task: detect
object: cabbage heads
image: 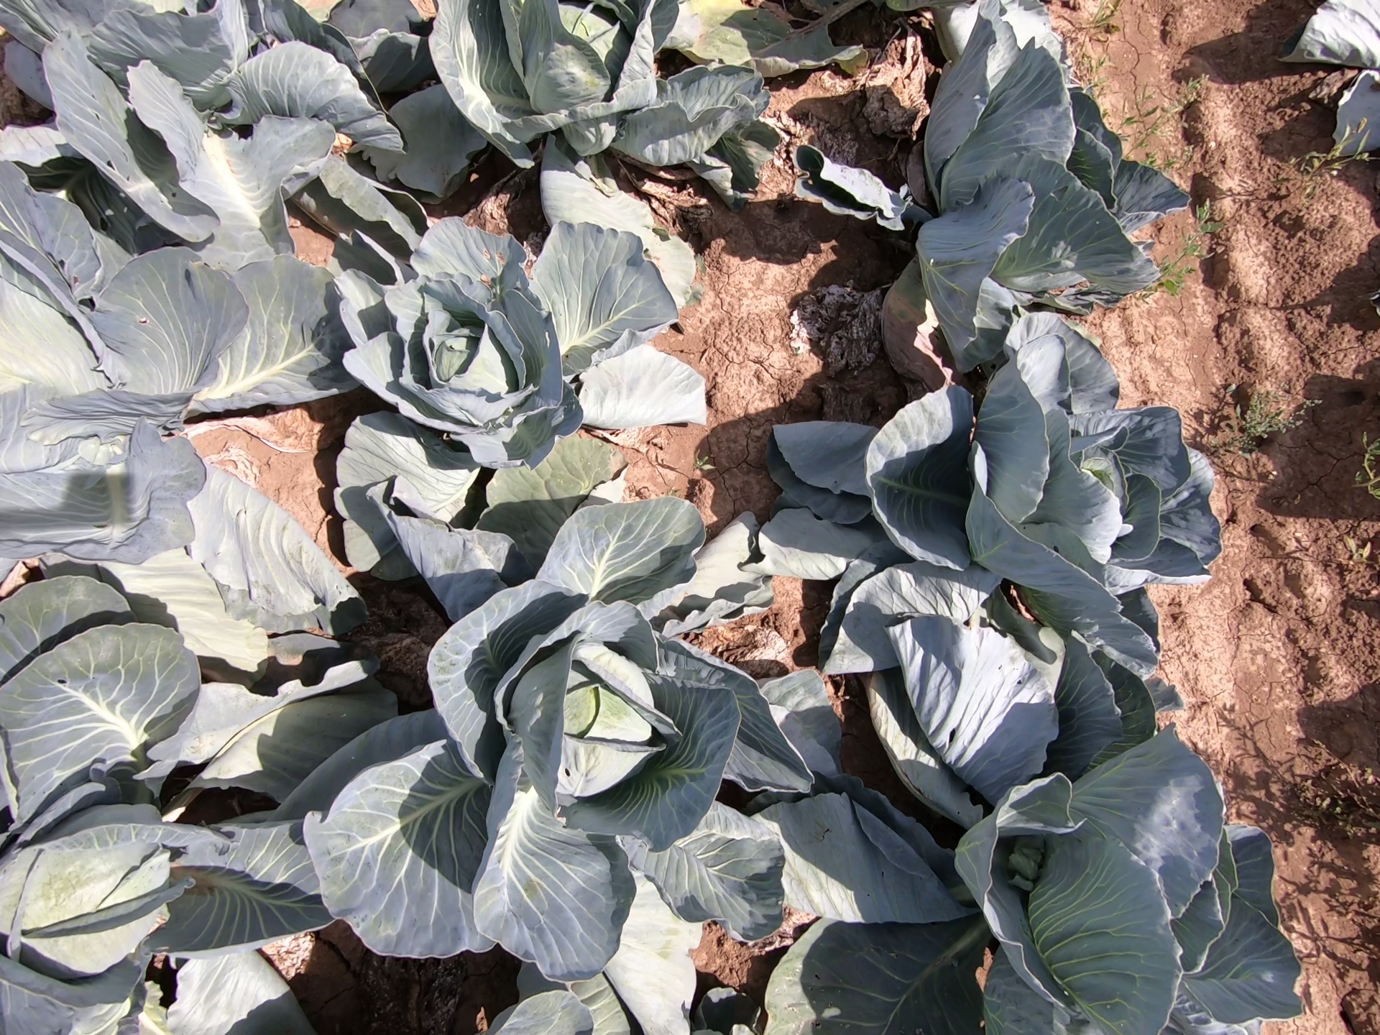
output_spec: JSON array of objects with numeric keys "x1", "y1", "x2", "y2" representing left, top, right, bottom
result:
[
  {"x1": 529, "y1": 4, "x2": 638, "y2": 98},
  {"x1": 513, "y1": 639, "x2": 657, "y2": 795},
  {"x1": 1045, "y1": 465, "x2": 1110, "y2": 533},
  {"x1": 0, "y1": 811, "x2": 173, "y2": 980},
  {"x1": 432, "y1": 326, "x2": 514, "y2": 408},
  {"x1": 44, "y1": 0, "x2": 198, "y2": 67}
]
